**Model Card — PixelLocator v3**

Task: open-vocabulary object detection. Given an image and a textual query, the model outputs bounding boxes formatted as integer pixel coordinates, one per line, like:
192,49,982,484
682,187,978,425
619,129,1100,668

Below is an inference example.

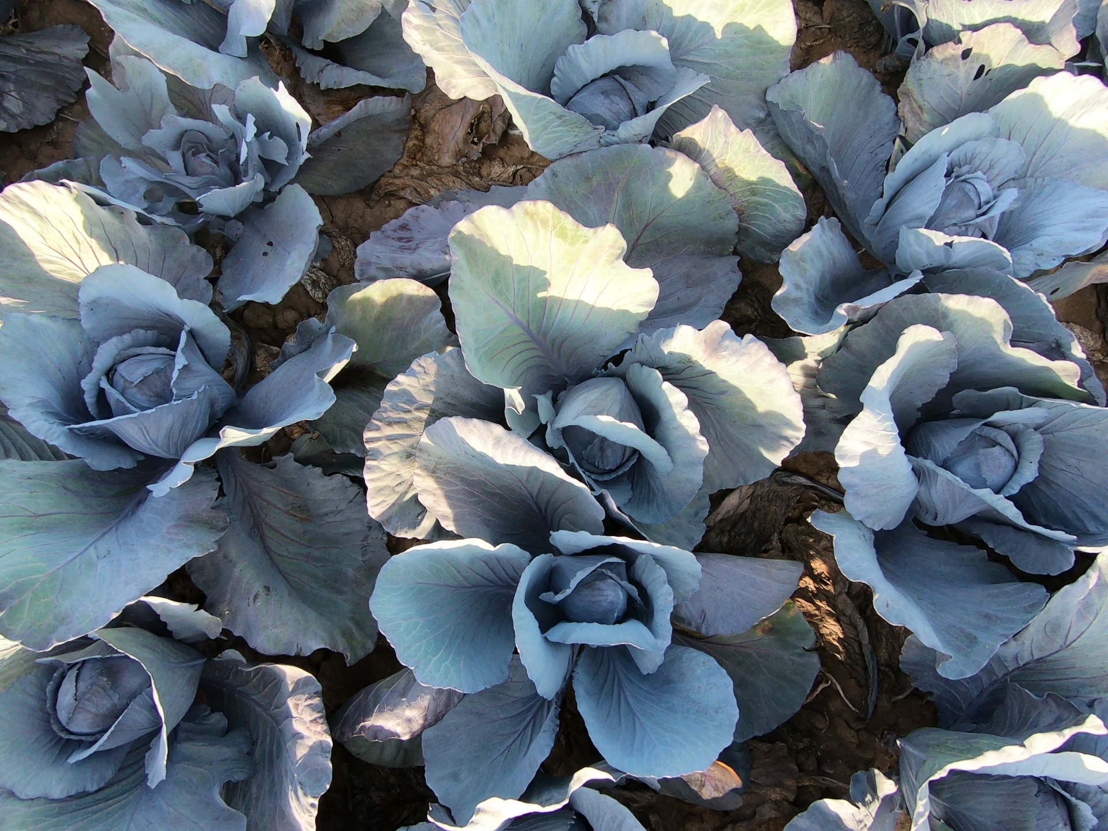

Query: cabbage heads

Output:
956,768,1075,829
557,386,640,476
560,563,628,636
109,354,222,450
56,641,185,740
919,167,998,256
186,149,234,192
926,424,1016,495
570,77,645,145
